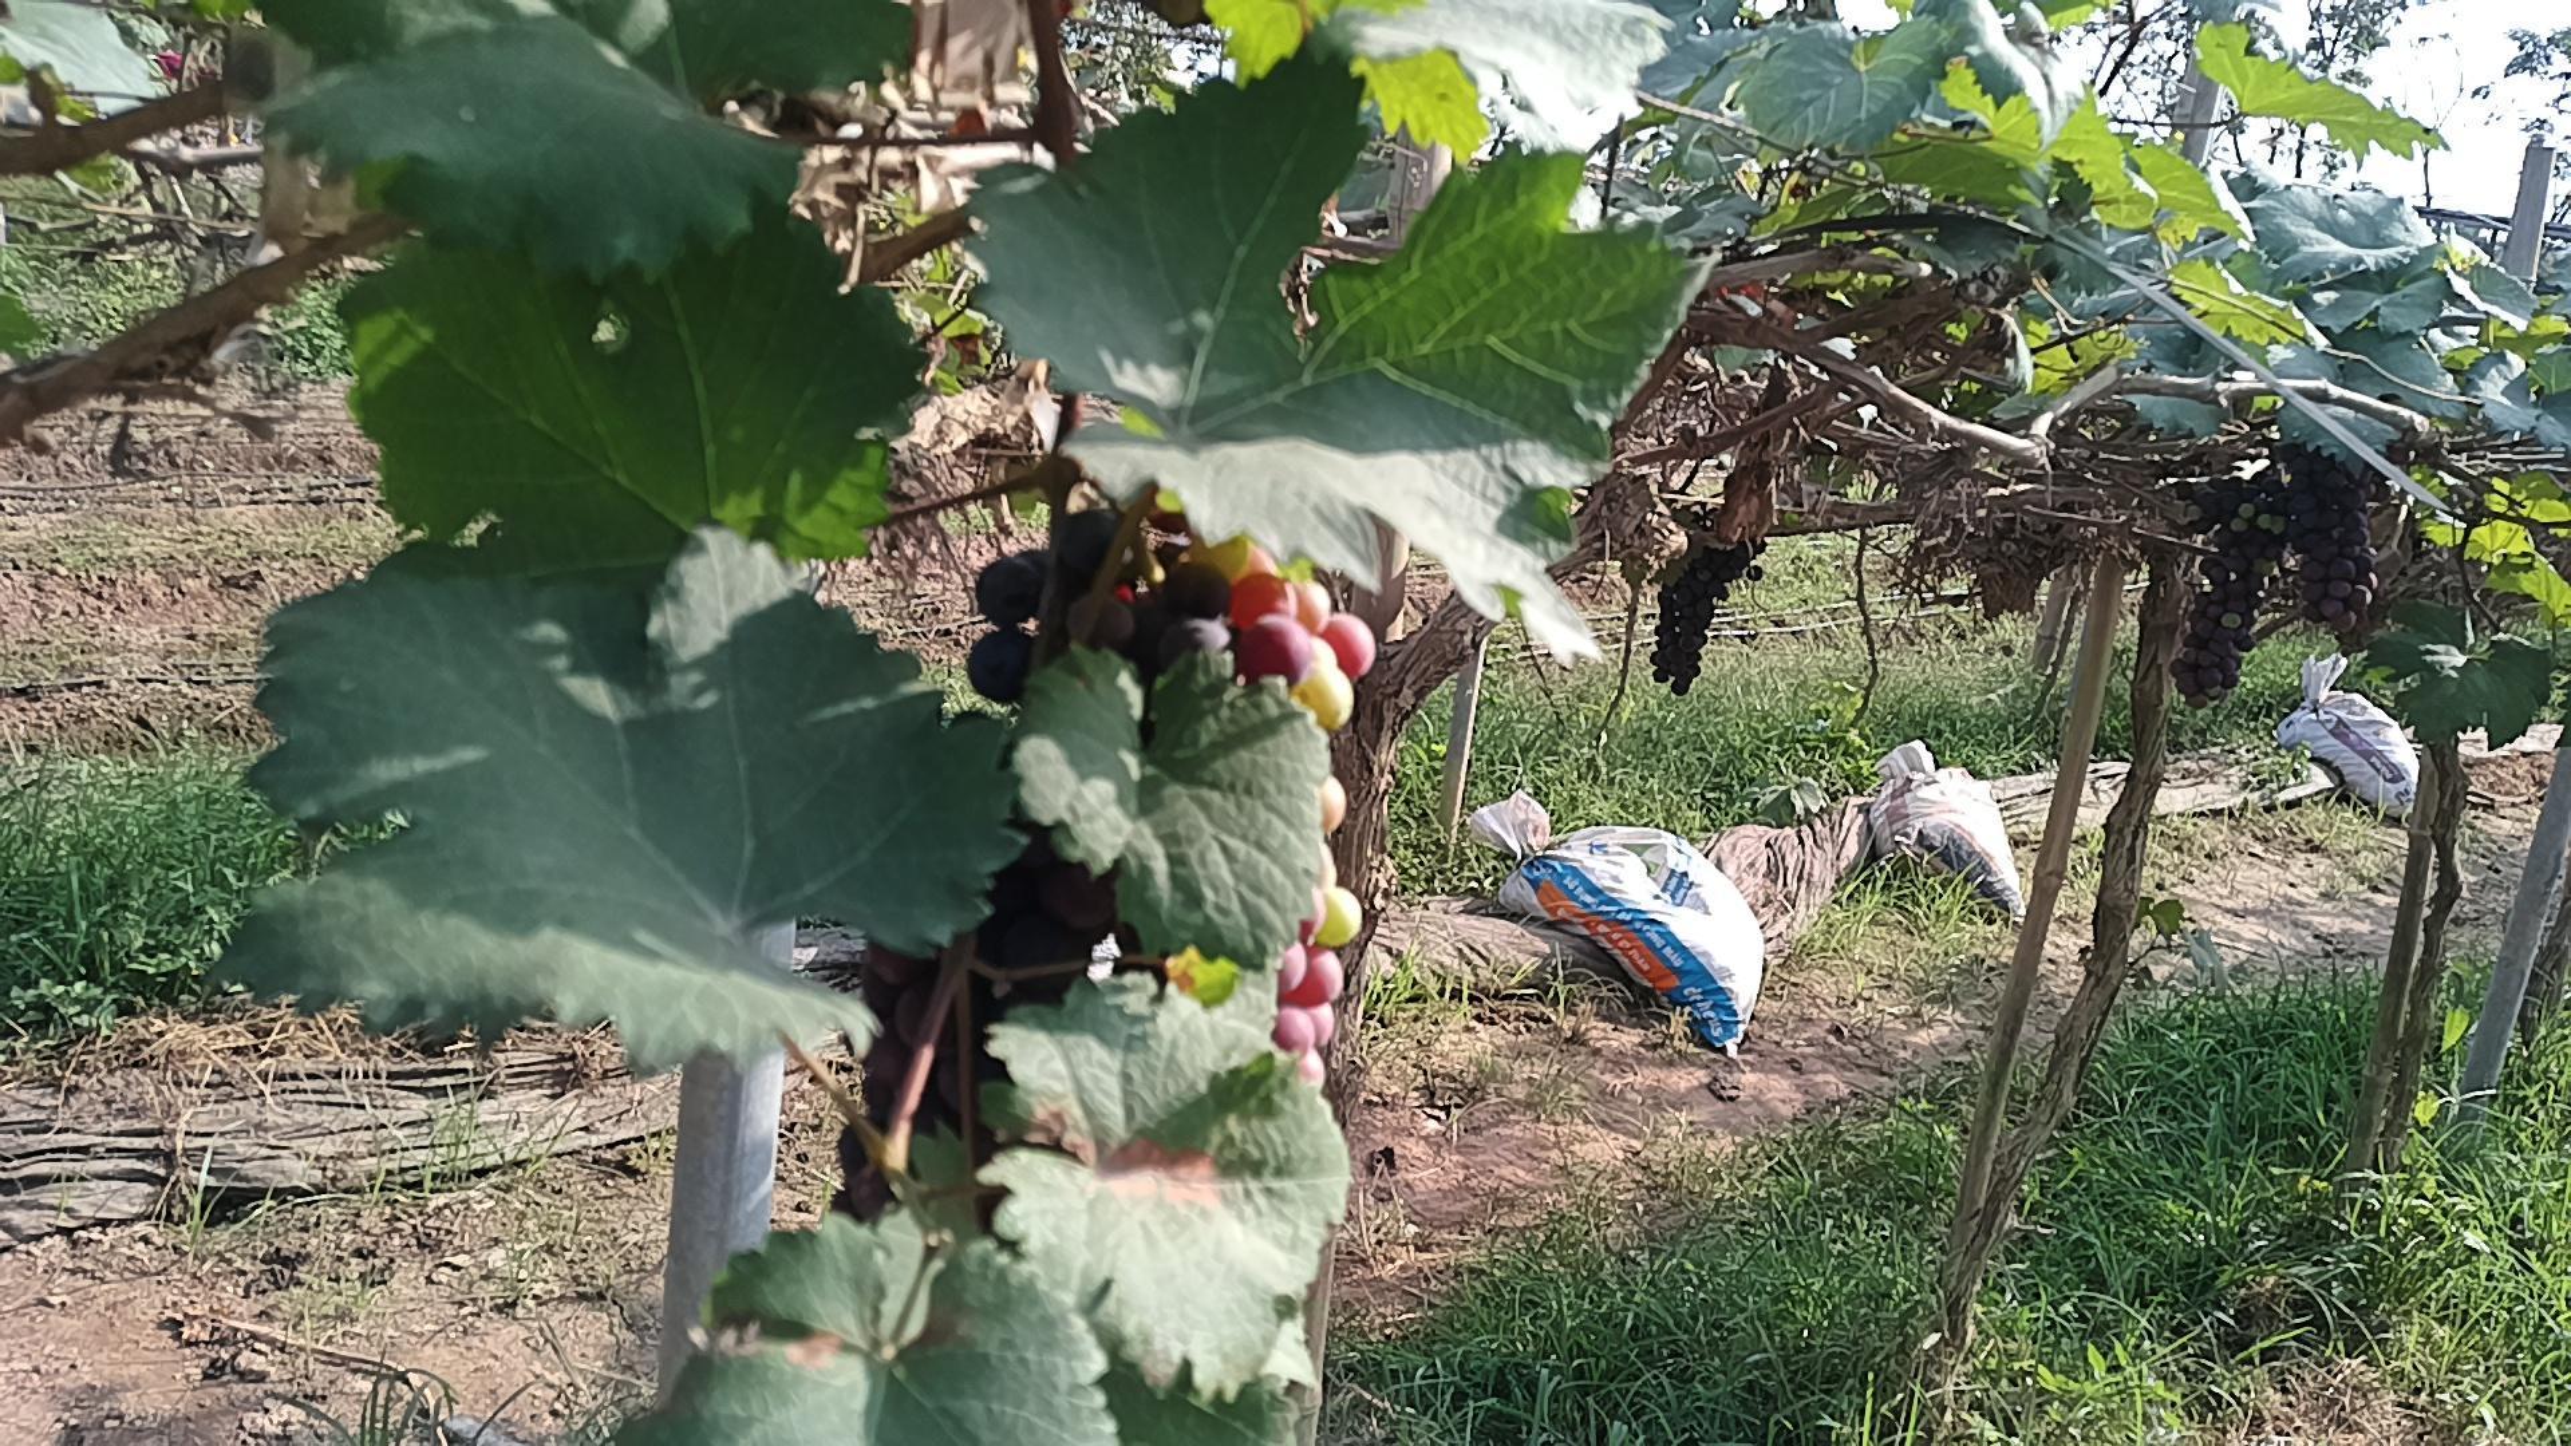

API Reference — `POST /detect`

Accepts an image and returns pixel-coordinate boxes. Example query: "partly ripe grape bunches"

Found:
[2169,443,2374,704]
[838,507,1377,1218]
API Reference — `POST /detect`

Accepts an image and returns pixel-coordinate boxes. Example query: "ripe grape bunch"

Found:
[1648,540,1766,695]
